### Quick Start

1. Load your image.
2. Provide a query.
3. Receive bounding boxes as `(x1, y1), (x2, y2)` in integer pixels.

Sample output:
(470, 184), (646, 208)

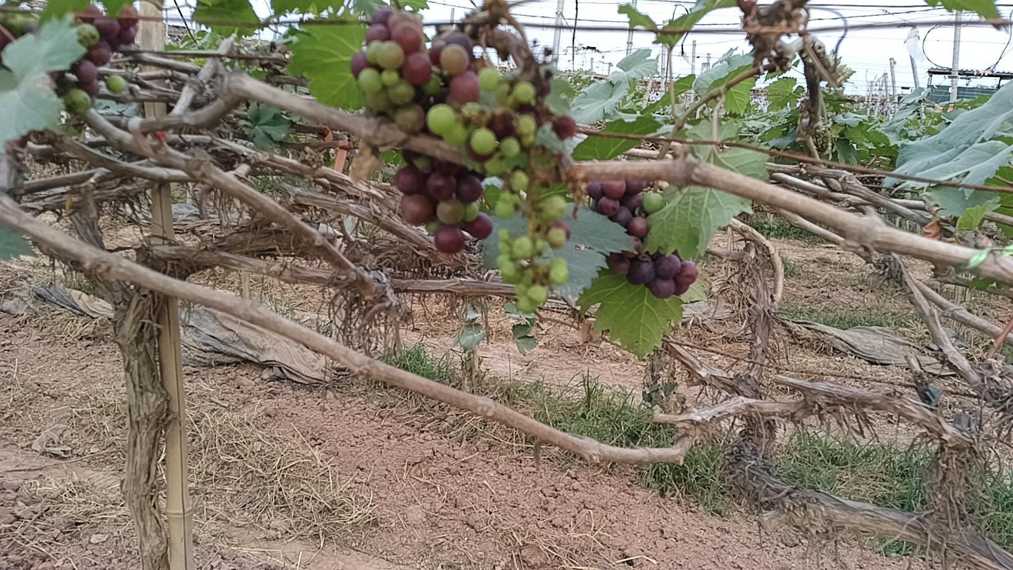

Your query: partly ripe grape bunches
(0, 5), (138, 115)
(587, 181), (697, 299)
(350, 0), (576, 313)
